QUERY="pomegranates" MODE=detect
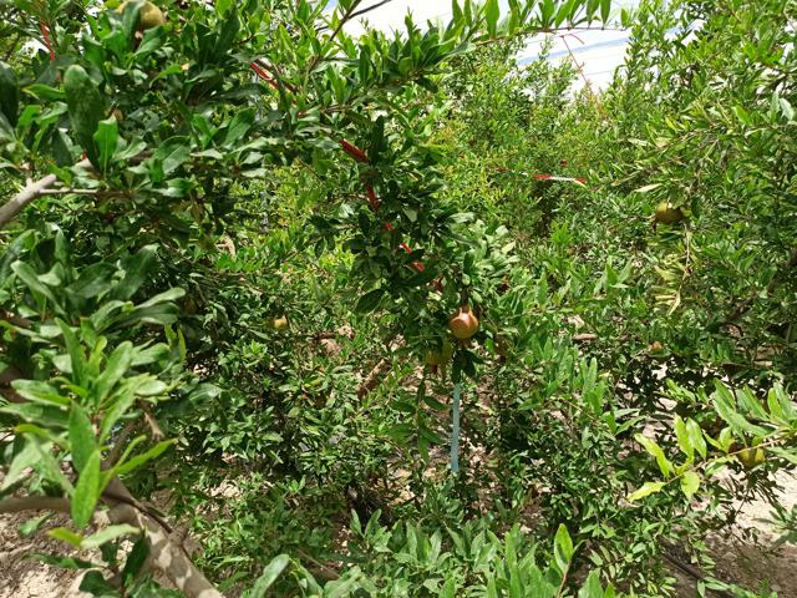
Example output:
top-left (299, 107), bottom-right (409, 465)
top-left (269, 318), bottom-right (289, 329)
top-left (737, 447), bottom-right (766, 467)
top-left (448, 305), bottom-right (479, 350)
top-left (648, 199), bottom-right (684, 232)
top-left (116, 0), bottom-right (166, 42)
top-left (425, 344), bottom-right (453, 376)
